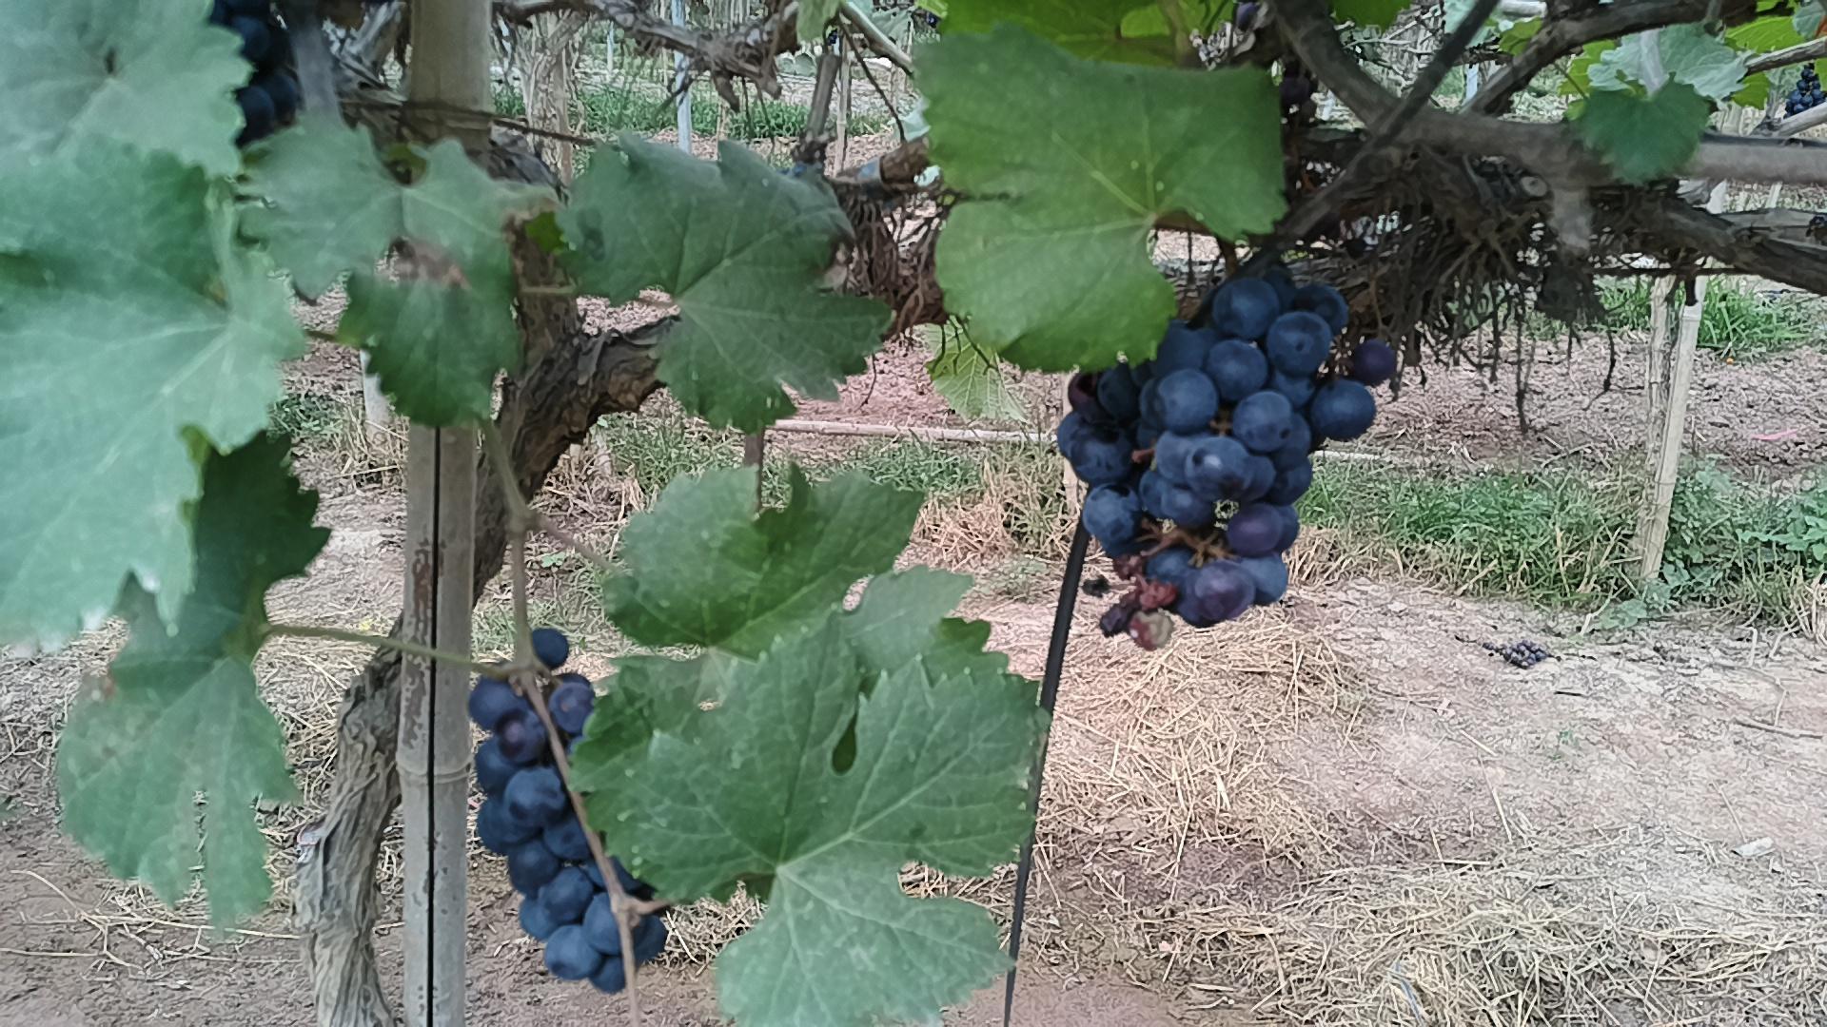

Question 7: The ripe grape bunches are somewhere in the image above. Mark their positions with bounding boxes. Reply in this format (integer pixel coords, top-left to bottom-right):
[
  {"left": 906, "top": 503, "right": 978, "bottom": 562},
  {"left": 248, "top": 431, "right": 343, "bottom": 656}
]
[
  {"left": 209, "top": 0, "right": 304, "bottom": 146},
  {"left": 470, "top": 628, "right": 668, "bottom": 992},
  {"left": 1057, "top": 260, "right": 1397, "bottom": 649}
]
